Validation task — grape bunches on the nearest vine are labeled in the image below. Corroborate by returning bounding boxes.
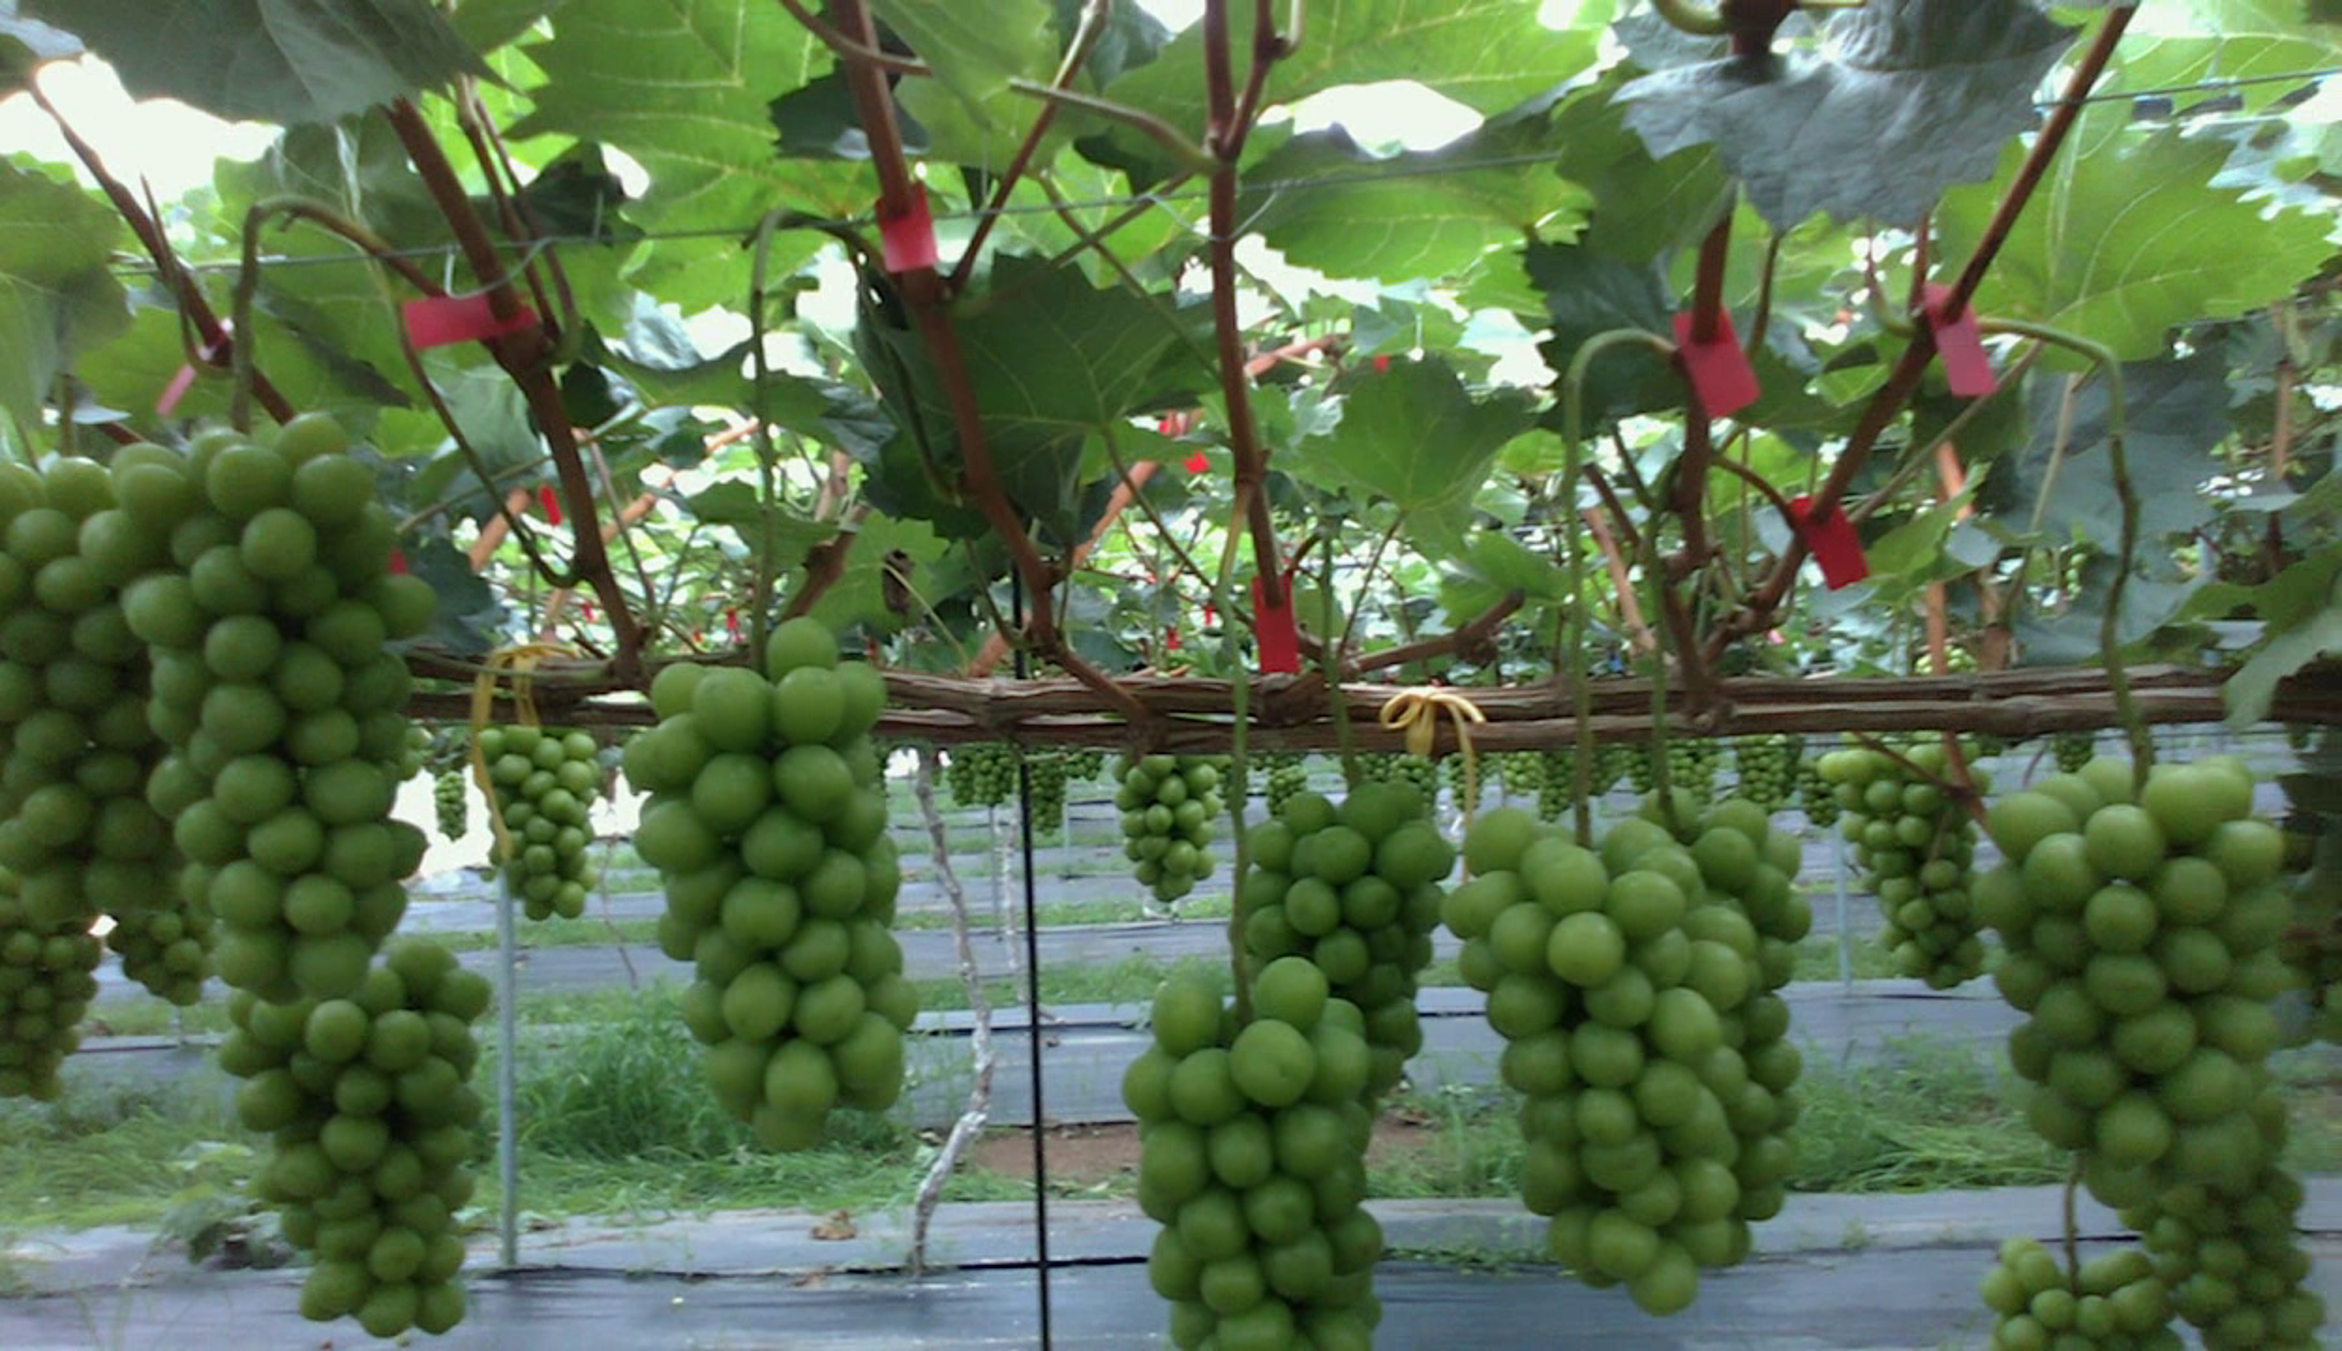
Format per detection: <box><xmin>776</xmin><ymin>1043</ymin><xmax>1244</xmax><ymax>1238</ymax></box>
<box><xmin>623</xmin><ymin>619</ymin><xmax>925</xmax><ymax>1154</ymax></box>
<box><xmin>1978</xmin><ymin>1238</ymin><xmax>2186</xmax><ymax>1349</ymax></box>
<box><xmin>1978</xmin><ymin>756</ymin><xmax>2293</xmax><ymax>1210</ymax></box>
<box><xmin>1676</xmin><ymin>790</ymin><xmax>1811</xmax><ymax>1261</ymax></box>
<box><xmin>0</xmin><ymin>458</ymin><xmax>180</xmax><ymax>927</ymax></box>
<box><xmin>1445</xmin><ymin>805</ymin><xmax>1762</xmax><ymax>1312</ymax></box>
<box><xmin>1120</xmin><ymin>955</ymin><xmax>1389</xmax><ymax>1349</ymax></box>
<box><xmin>83</xmin><ymin>411</ymin><xmax>441</xmax><ymax>1011</ymax></box>
<box><xmin>216</xmin><ymin>938</ymin><xmax>490</xmax><ymax>1336</ymax></box>
<box><xmin>1248</xmin><ymin>777</ymin><xmax>1451</xmax><ymax>1098</ymax></box>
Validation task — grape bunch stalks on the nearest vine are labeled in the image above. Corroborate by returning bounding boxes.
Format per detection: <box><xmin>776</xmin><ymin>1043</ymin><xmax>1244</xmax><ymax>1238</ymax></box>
<box><xmin>2004</xmin><ymin>319</ymin><xmax>2147</xmax><ymax>786</ymax></box>
<box><xmin>1559</xmin><ymin>328</ymin><xmax>1655</xmax><ymax>844</ymax></box>
<box><xmin>745</xmin><ymin>206</ymin><xmax>886</xmax><ymax>674</ymax></box>
<box><xmin>1642</xmin><ymin>454</ymin><xmax>1689</xmax><ymax>844</ymax></box>
<box><xmin>2064</xmin><ymin>1175</ymin><xmax>2079</xmax><ymax>1287</ymax></box>
<box><xmin>229</xmin><ymin>197</ymin><xmax>443</xmax><ymax>432</ymax></box>
<box><xmin>54</xmin><ymin>379</ymin><xmax>75</xmax><ymax>454</ymax></box>
<box><xmin>1214</xmin><ymin>503</ymin><xmax>1248</xmax><ymax>1026</ymax></box>
<box><xmin>1295</xmin><ymin>525</ymin><xmax>1362</xmax><ymax>786</ymax></box>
